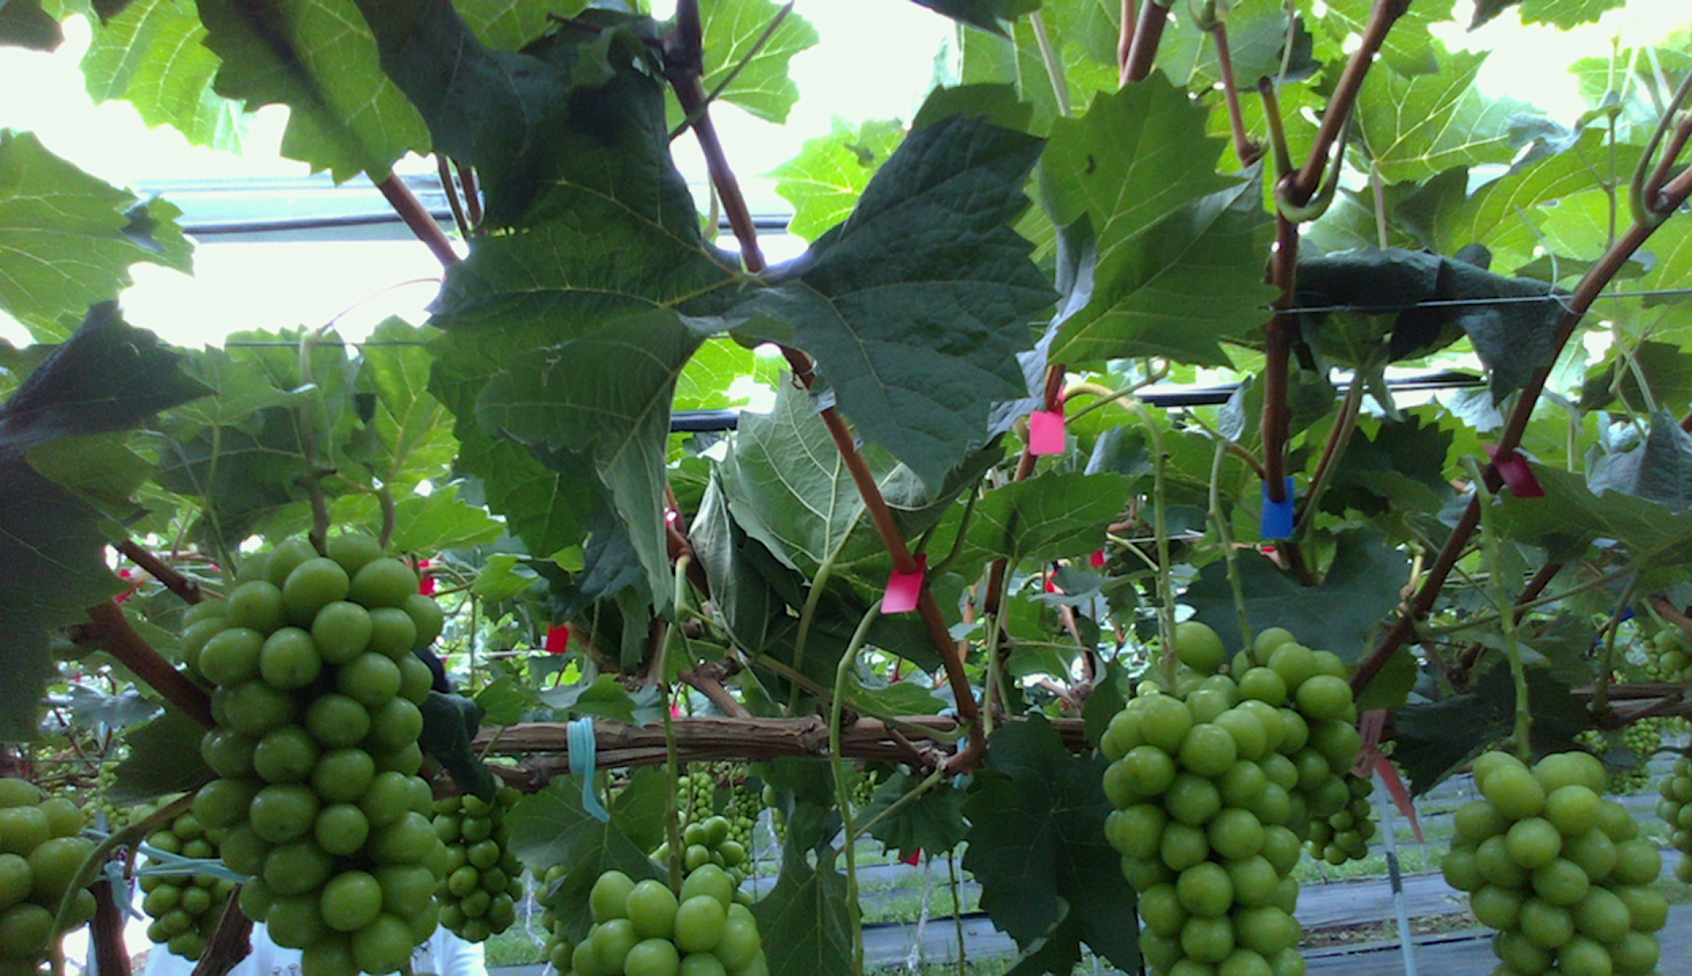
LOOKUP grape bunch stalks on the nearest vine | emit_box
[298,339,329,556]
[659,554,691,900]
[1464,462,1535,769]
[1117,396,1178,697]
[1209,446,1257,667]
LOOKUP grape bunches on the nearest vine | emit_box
[1230,626,1360,842]
[179,533,449,975]
[1101,671,1307,975]
[572,863,770,975]
[1440,751,1669,975]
